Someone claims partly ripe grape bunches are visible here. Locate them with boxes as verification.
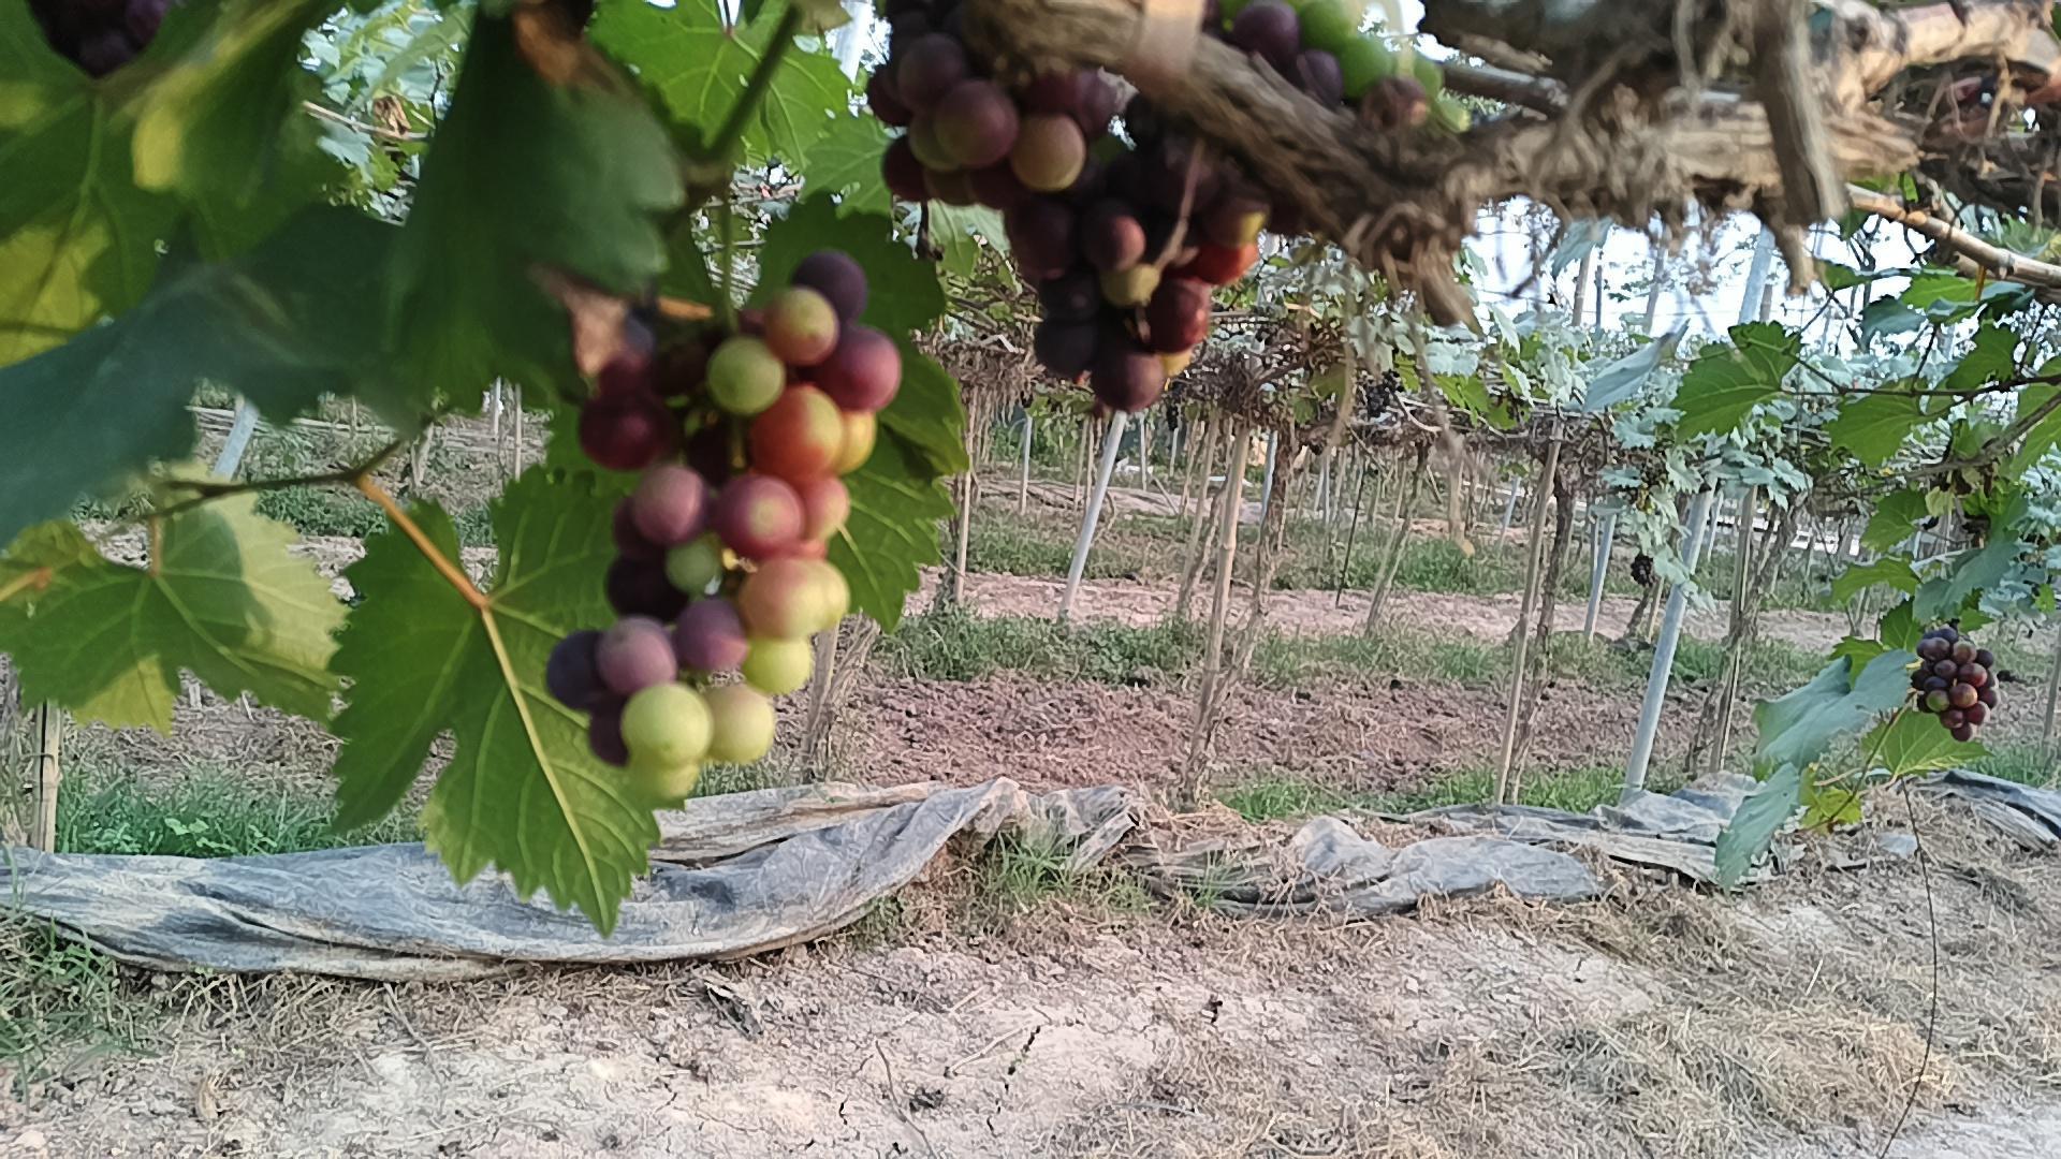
[867,0,1473,409]
[1909,625,2015,740]
[547,251,902,796]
